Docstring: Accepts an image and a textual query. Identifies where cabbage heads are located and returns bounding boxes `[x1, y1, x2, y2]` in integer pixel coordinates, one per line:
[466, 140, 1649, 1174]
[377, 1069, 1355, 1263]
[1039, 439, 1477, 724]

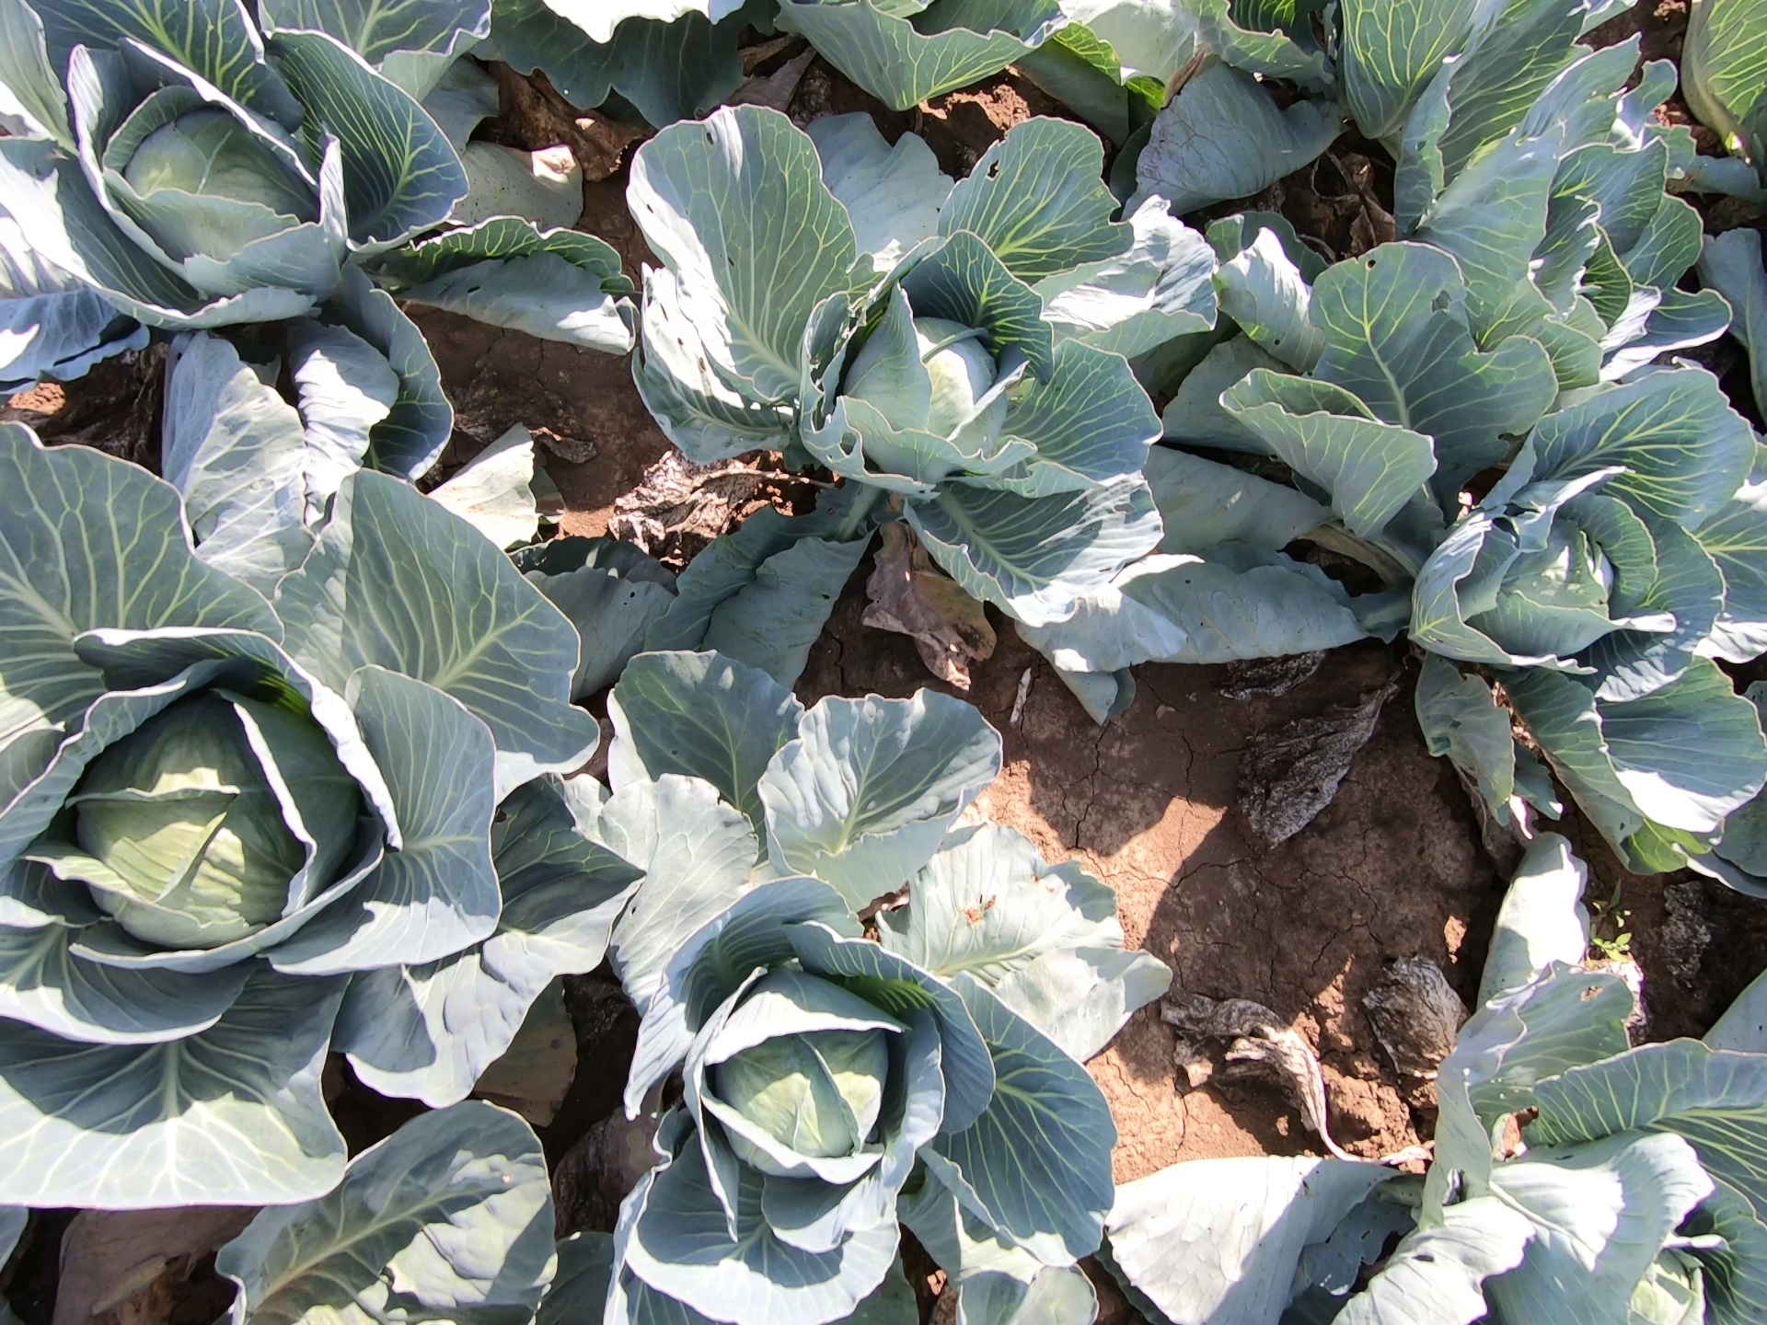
[122, 104, 314, 273]
[862, 319, 1001, 471]
[1504, 1203, 1706, 1318]
[73, 702, 345, 929]
[1471, 521, 1614, 644]
[715, 980, 888, 1164]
